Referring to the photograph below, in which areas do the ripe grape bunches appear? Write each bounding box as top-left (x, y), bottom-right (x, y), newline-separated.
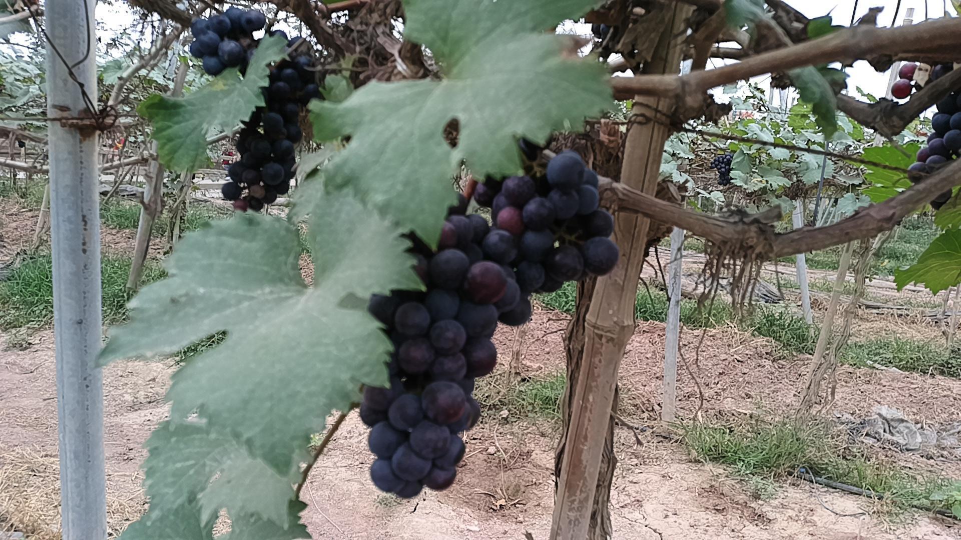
top-left (709, 151), bottom-right (734, 186)
top-left (360, 190), bottom-right (547, 499)
top-left (222, 54), bottom-right (323, 211)
top-left (474, 140), bottom-right (618, 292)
top-left (891, 63), bottom-right (960, 213)
top-left (188, 6), bottom-right (267, 76)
